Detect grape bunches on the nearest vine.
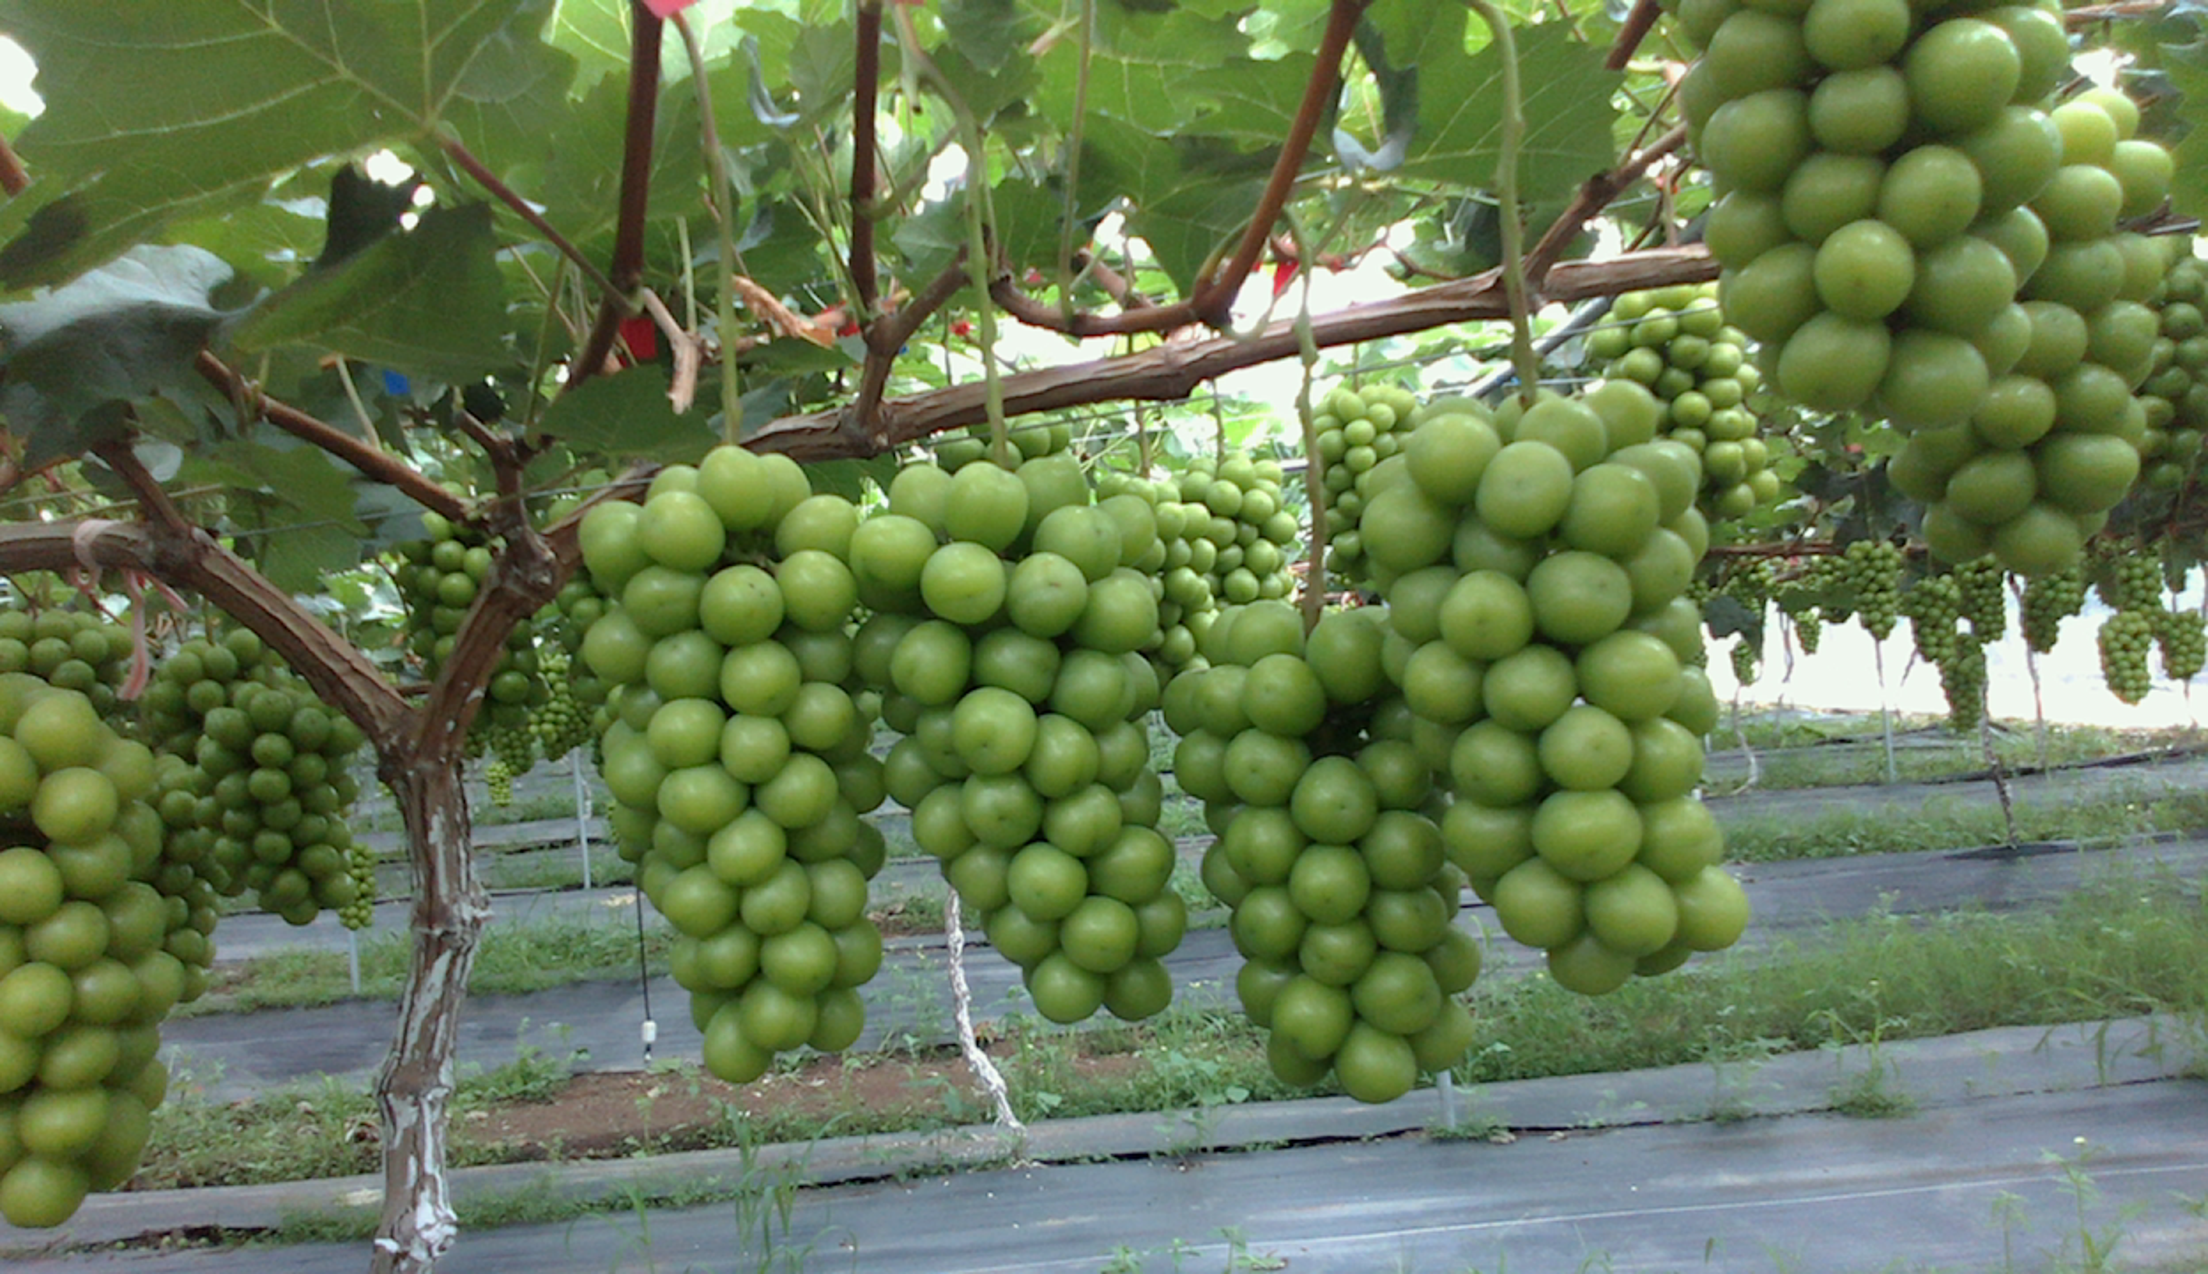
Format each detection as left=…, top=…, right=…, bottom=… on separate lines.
left=1361, top=379, right=1748, bottom=996
left=1658, top=2, right=2072, bottom=428
left=577, top=446, right=888, bottom=1081
left=1161, top=600, right=1483, bottom=1104
left=0, top=672, right=184, bottom=1232
left=842, top=455, right=1187, bottom=1025
left=1888, top=85, right=2176, bottom=577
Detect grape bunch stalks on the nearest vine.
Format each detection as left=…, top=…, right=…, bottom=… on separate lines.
left=1198, top=209, right=1325, bottom=637
left=1467, top=2, right=1536, bottom=412
left=895, top=4, right=1007, bottom=469
left=671, top=12, right=743, bottom=448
